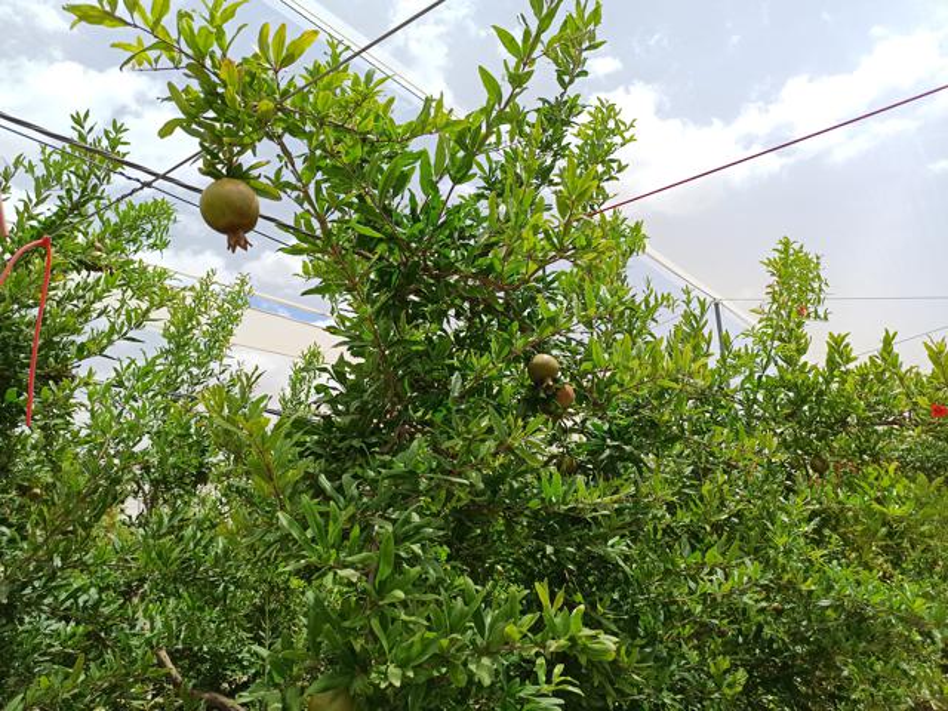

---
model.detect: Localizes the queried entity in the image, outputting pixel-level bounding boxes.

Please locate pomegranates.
[555,384,575,406]
[198,176,259,253]
[307,690,354,711]
[529,353,560,393]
